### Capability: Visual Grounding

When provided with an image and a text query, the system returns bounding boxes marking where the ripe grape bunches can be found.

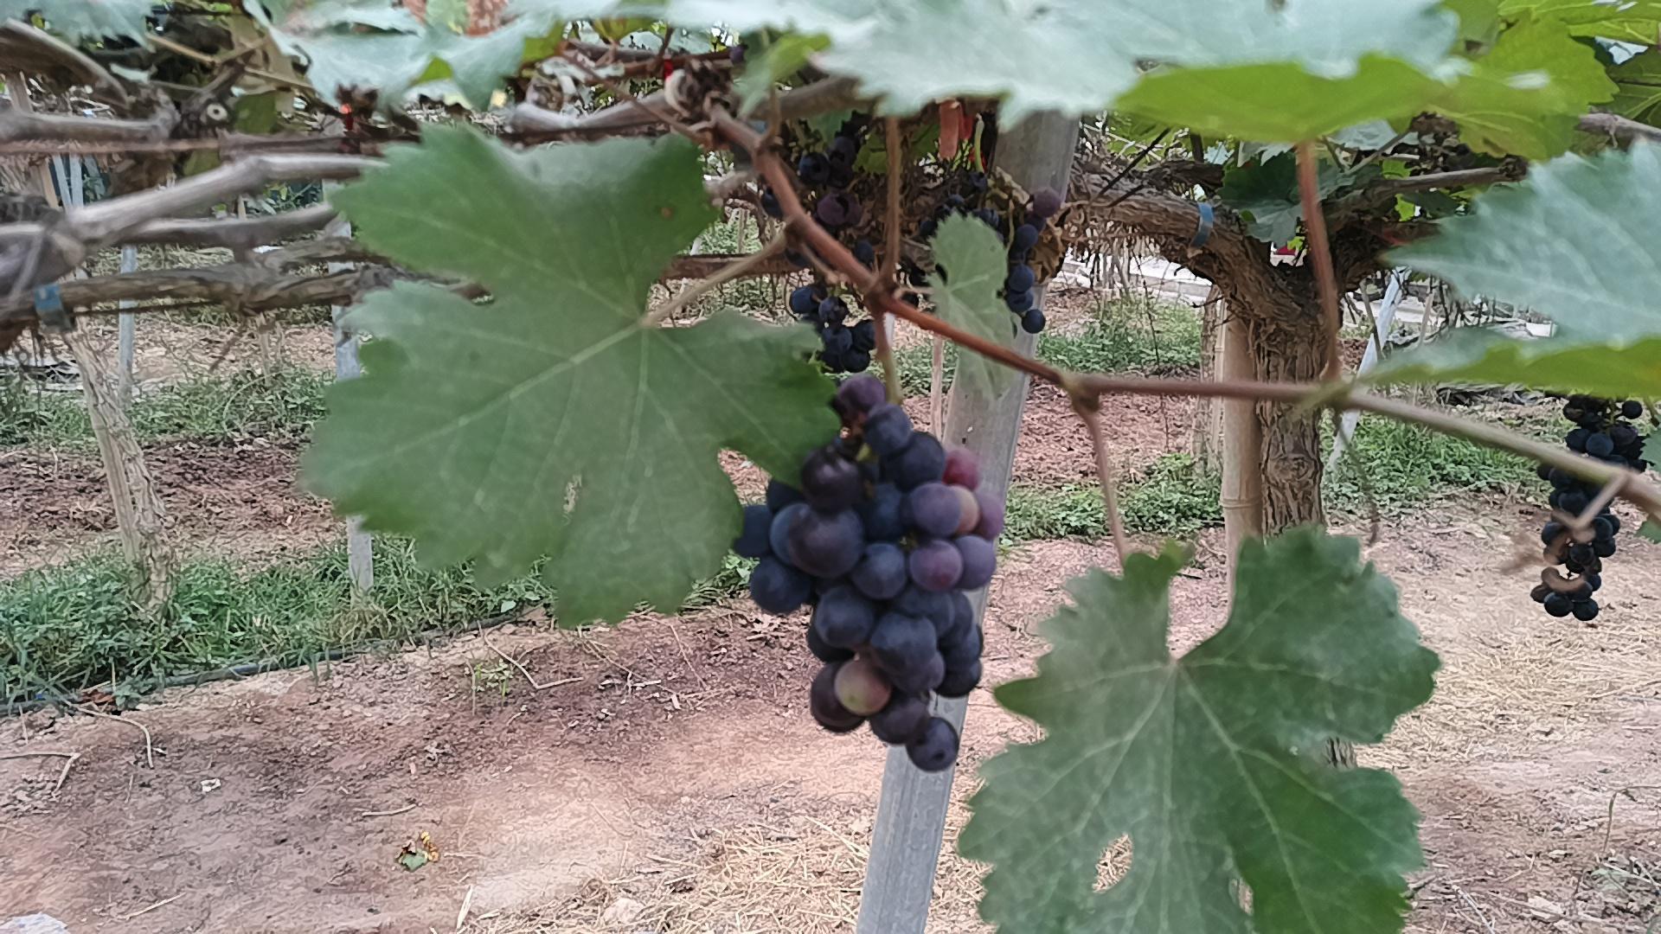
[735,373,1003,771]
[898,114,1063,333]
[1530,465,1620,620]
[786,278,875,373]
[780,114,885,267]
[1563,395,1648,471]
